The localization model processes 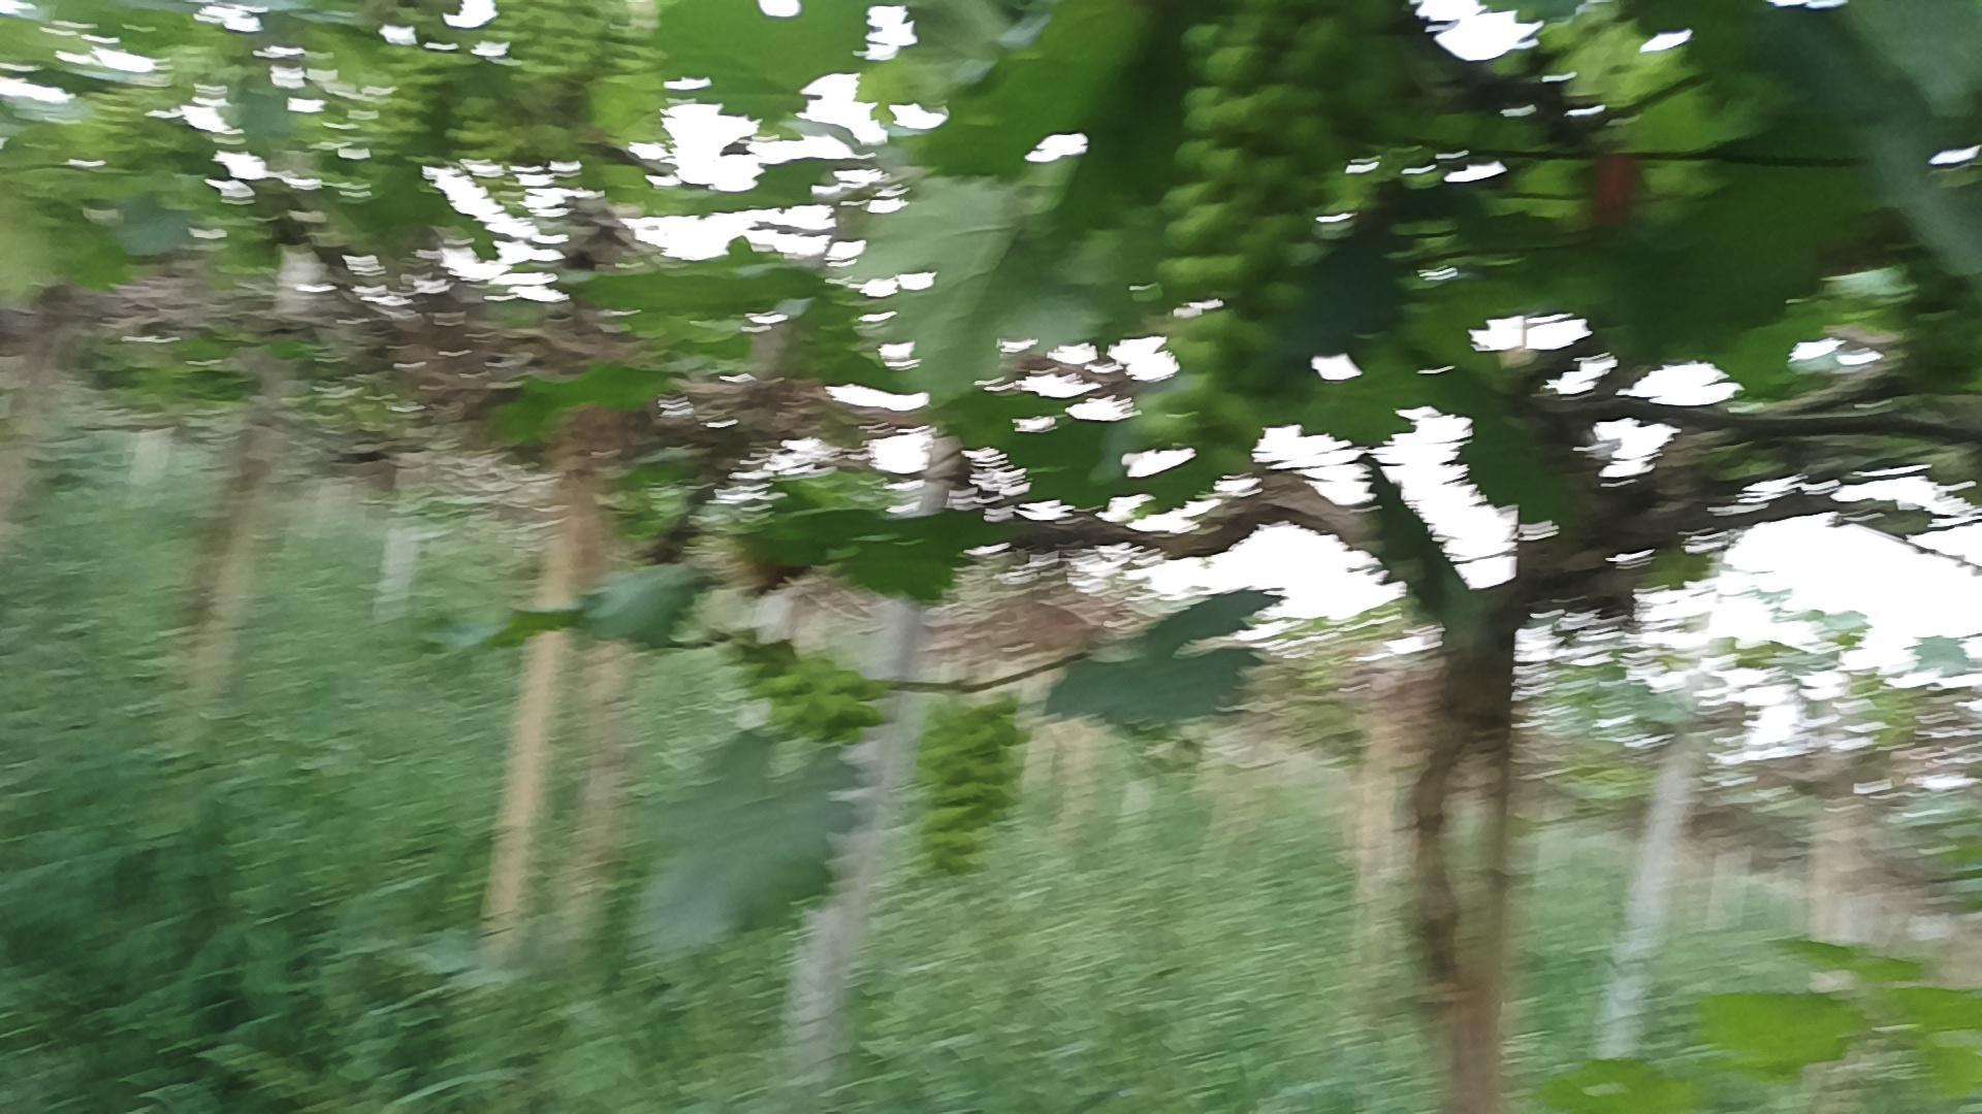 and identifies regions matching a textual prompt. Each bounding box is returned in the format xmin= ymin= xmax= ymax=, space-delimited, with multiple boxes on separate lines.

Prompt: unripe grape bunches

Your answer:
xmin=1134 ymin=0 xmax=1411 ymax=478
xmin=918 ymin=695 xmax=1027 ymax=875
xmin=714 ymin=628 xmax=889 ymax=748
